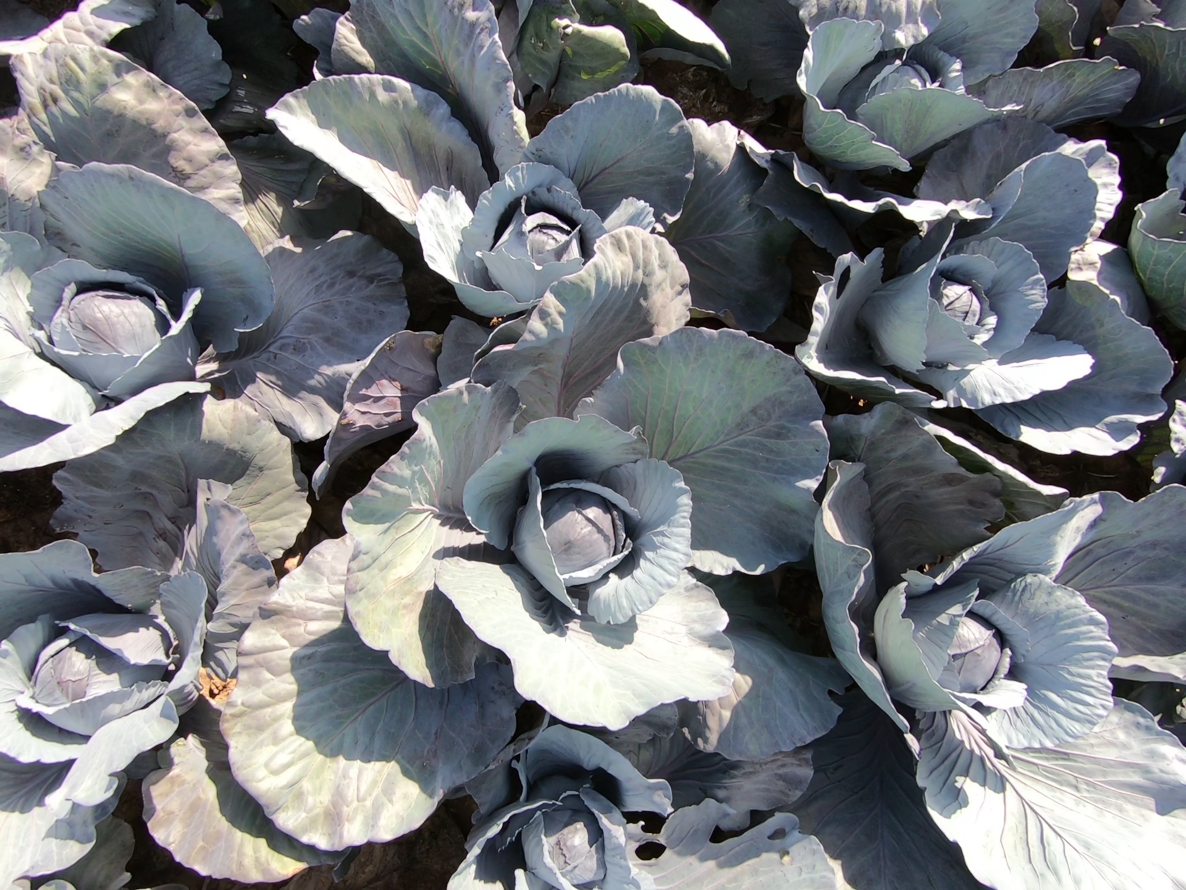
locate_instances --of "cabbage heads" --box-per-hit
[499,212,582,299]
[914,611,1005,699]
[34,627,157,736]
[58,287,182,391]
[518,794,616,885]
[524,482,625,587]
[867,65,933,136]
[901,277,981,362]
